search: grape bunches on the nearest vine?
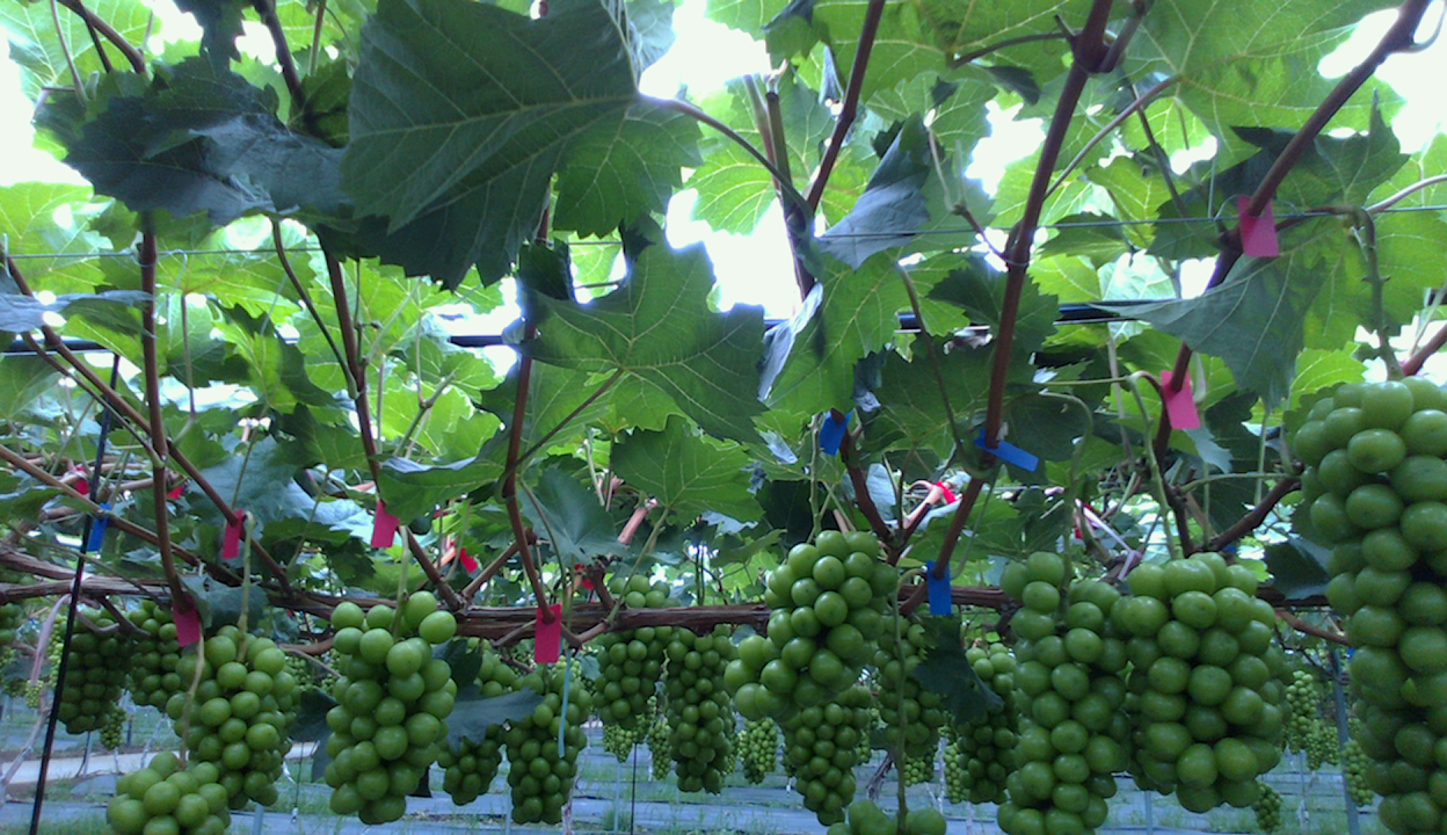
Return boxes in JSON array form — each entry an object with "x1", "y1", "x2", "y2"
[
  {"x1": 824, "y1": 799, "x2": 945, "y2": 834},
  {"x1": 722, "y1": 529, "x2": 900, "y2": 725},
  {"x1": 322, "y1": 590, "x2": 459, "y2": 827},
  {"x1": 167, "y1": 625, "x2": 301, "y2": 809},
  {"x1": 1292, "y1": 375, "x2": 1446, "y2": 710},
  {"x1": 94, "y1": 752, "x2": 231, "y2": 834},
  {"x1": 1122, "y1": 552, "x2": 1294, "y2": 815},
  {"x1": 1352, "y1": 699, "x2": 1446, "y2": 834},
  {"x1": 997, "y1": 551, "x2": 1133, "y2": 834}
]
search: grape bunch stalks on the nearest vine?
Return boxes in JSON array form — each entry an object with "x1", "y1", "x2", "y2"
[
  {"x1": 177, "y1": 626, "x2": 204, "y2": 771},
  {"x1": 392, "y1": 524, "x2": 414, "y2": 644},
  {"x1": 806, "y1": 414, "x2": 824, "y2": 538},
  {"x1": 1331, "y1": 203, "x2": 1403, "y2": 380},
  {"x1": 234, "y1": 509, "x2": 254, "y2": 663},
  {"x1": 1130, "y1": 370, "x2": 1178, "y2": 560},
  {"x1": 1002, "y1": 391, "x2": 1095, "y2": 637},
  {"x1": 889, "y1": 589, "x2": 908, "y2": 833}
]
